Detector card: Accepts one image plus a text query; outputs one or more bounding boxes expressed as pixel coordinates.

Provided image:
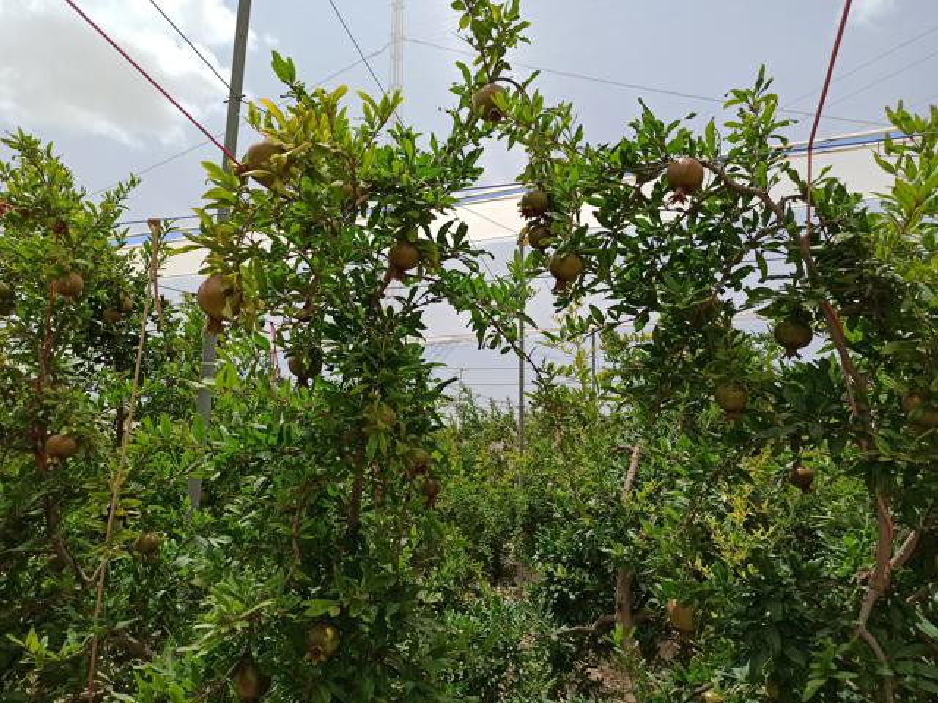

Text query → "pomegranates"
[472,82,506,123]
[196,271,243,337]
[53,272,86,305]
[528,224,554,256]
[665,599,695,633]
[900,393,938,426]
[419,479,441,505]
[774,318,813,360]
[289,354,324,390]
[233,661,273,703]
[388,240,421,272]
[548,253,583,294]
[787,467,813,495]
[665,157,703,205]
[403,450,428,476]
[45,432,79,460]
[714,382,749,423]
[516,190,550,223]
[232,139,286,187]
[135,535,160,559]
[305,621,341,668]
